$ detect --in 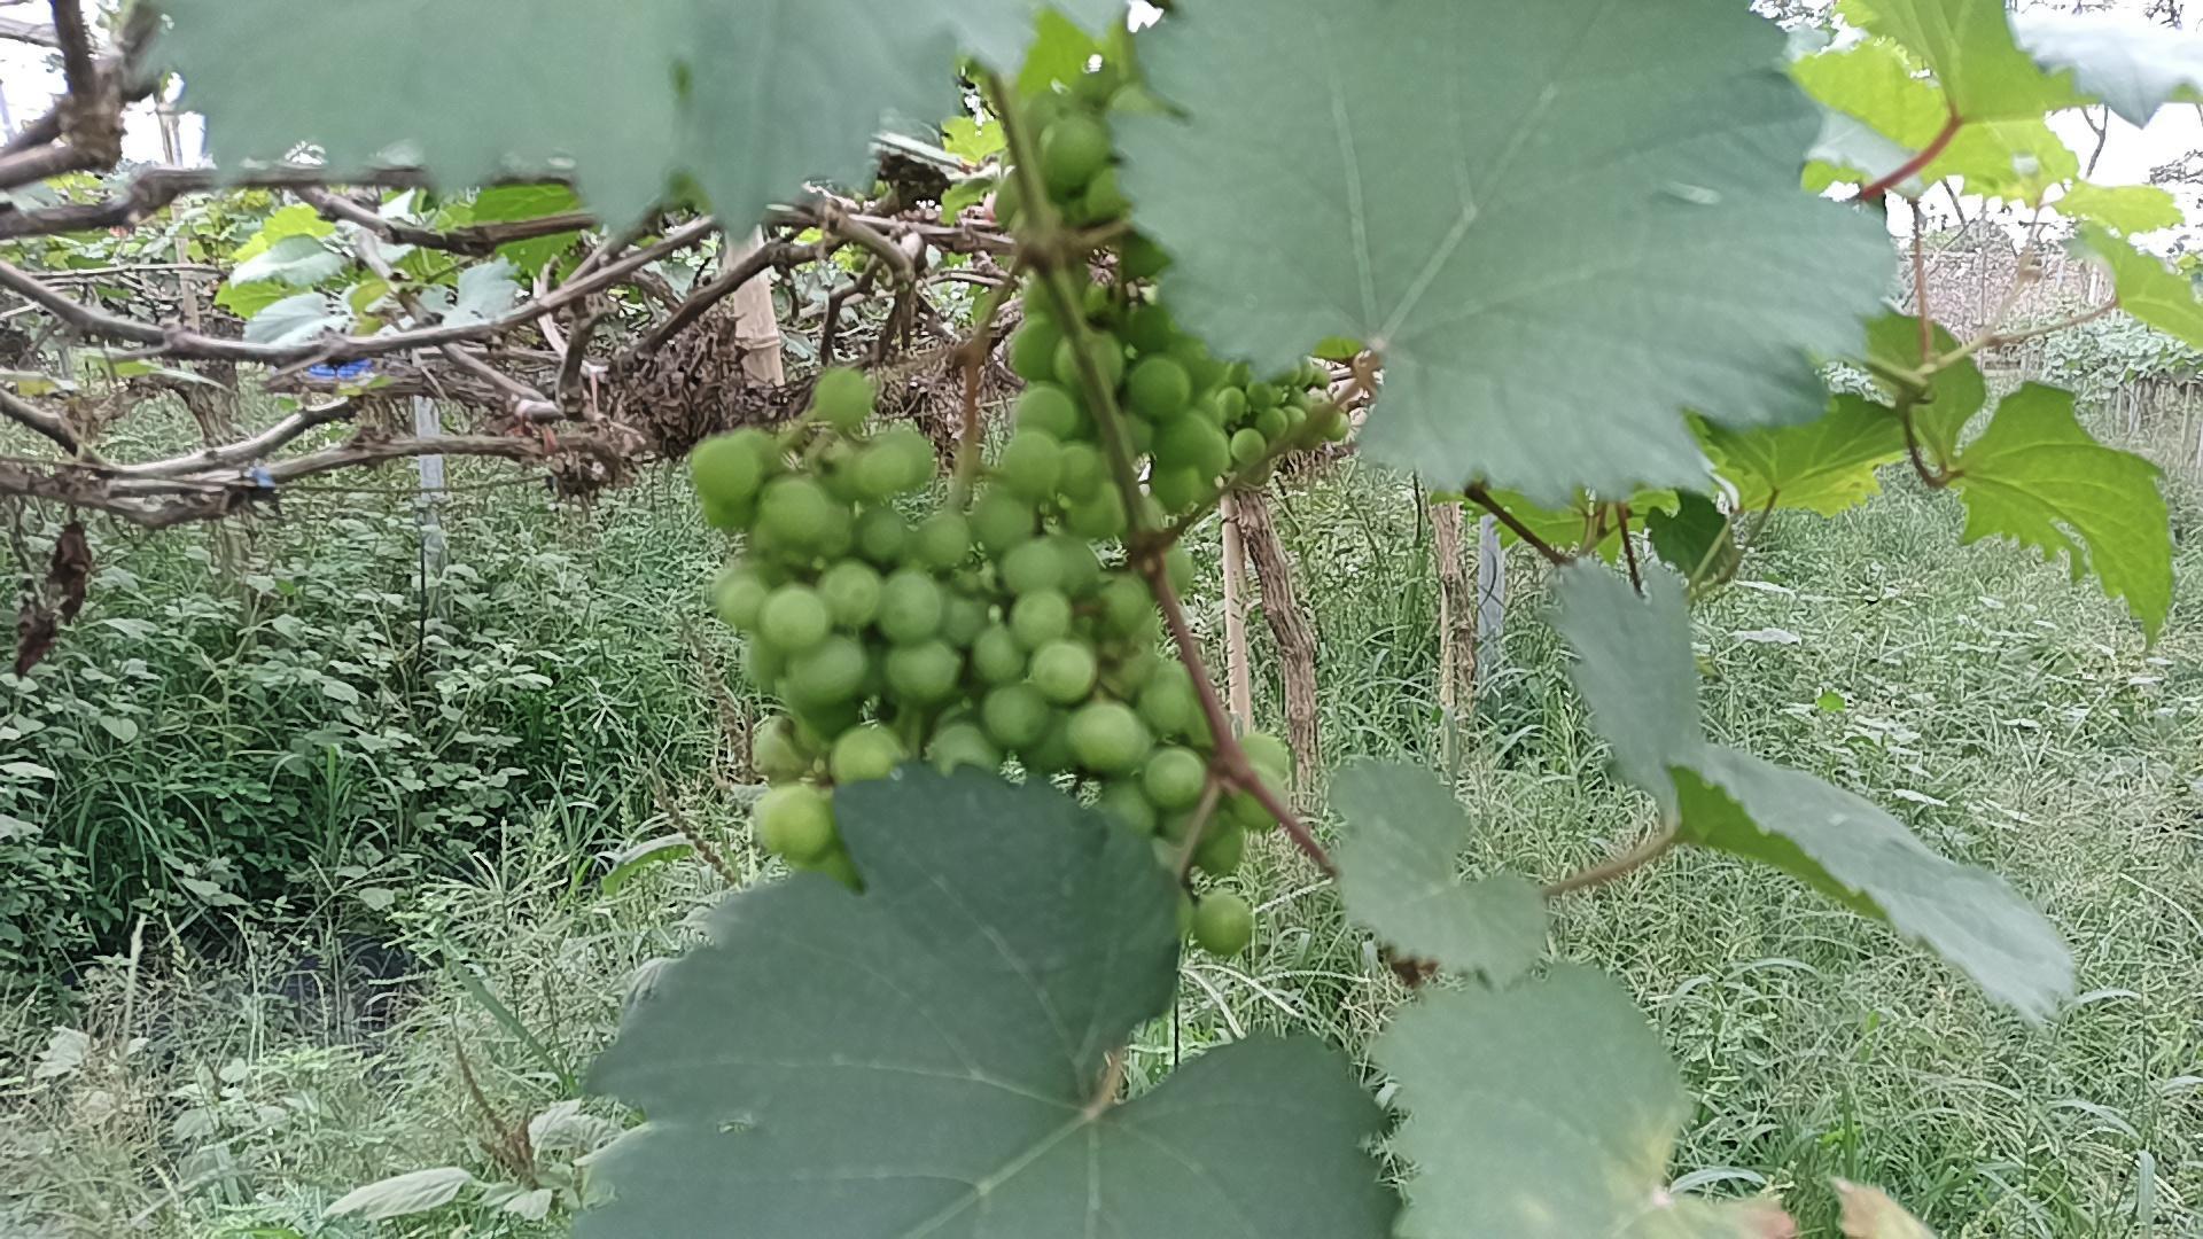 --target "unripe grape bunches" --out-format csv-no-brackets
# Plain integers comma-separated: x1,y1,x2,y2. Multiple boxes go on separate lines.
1219,349,1350,484
692,372,1291,956
990,38,1232,599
